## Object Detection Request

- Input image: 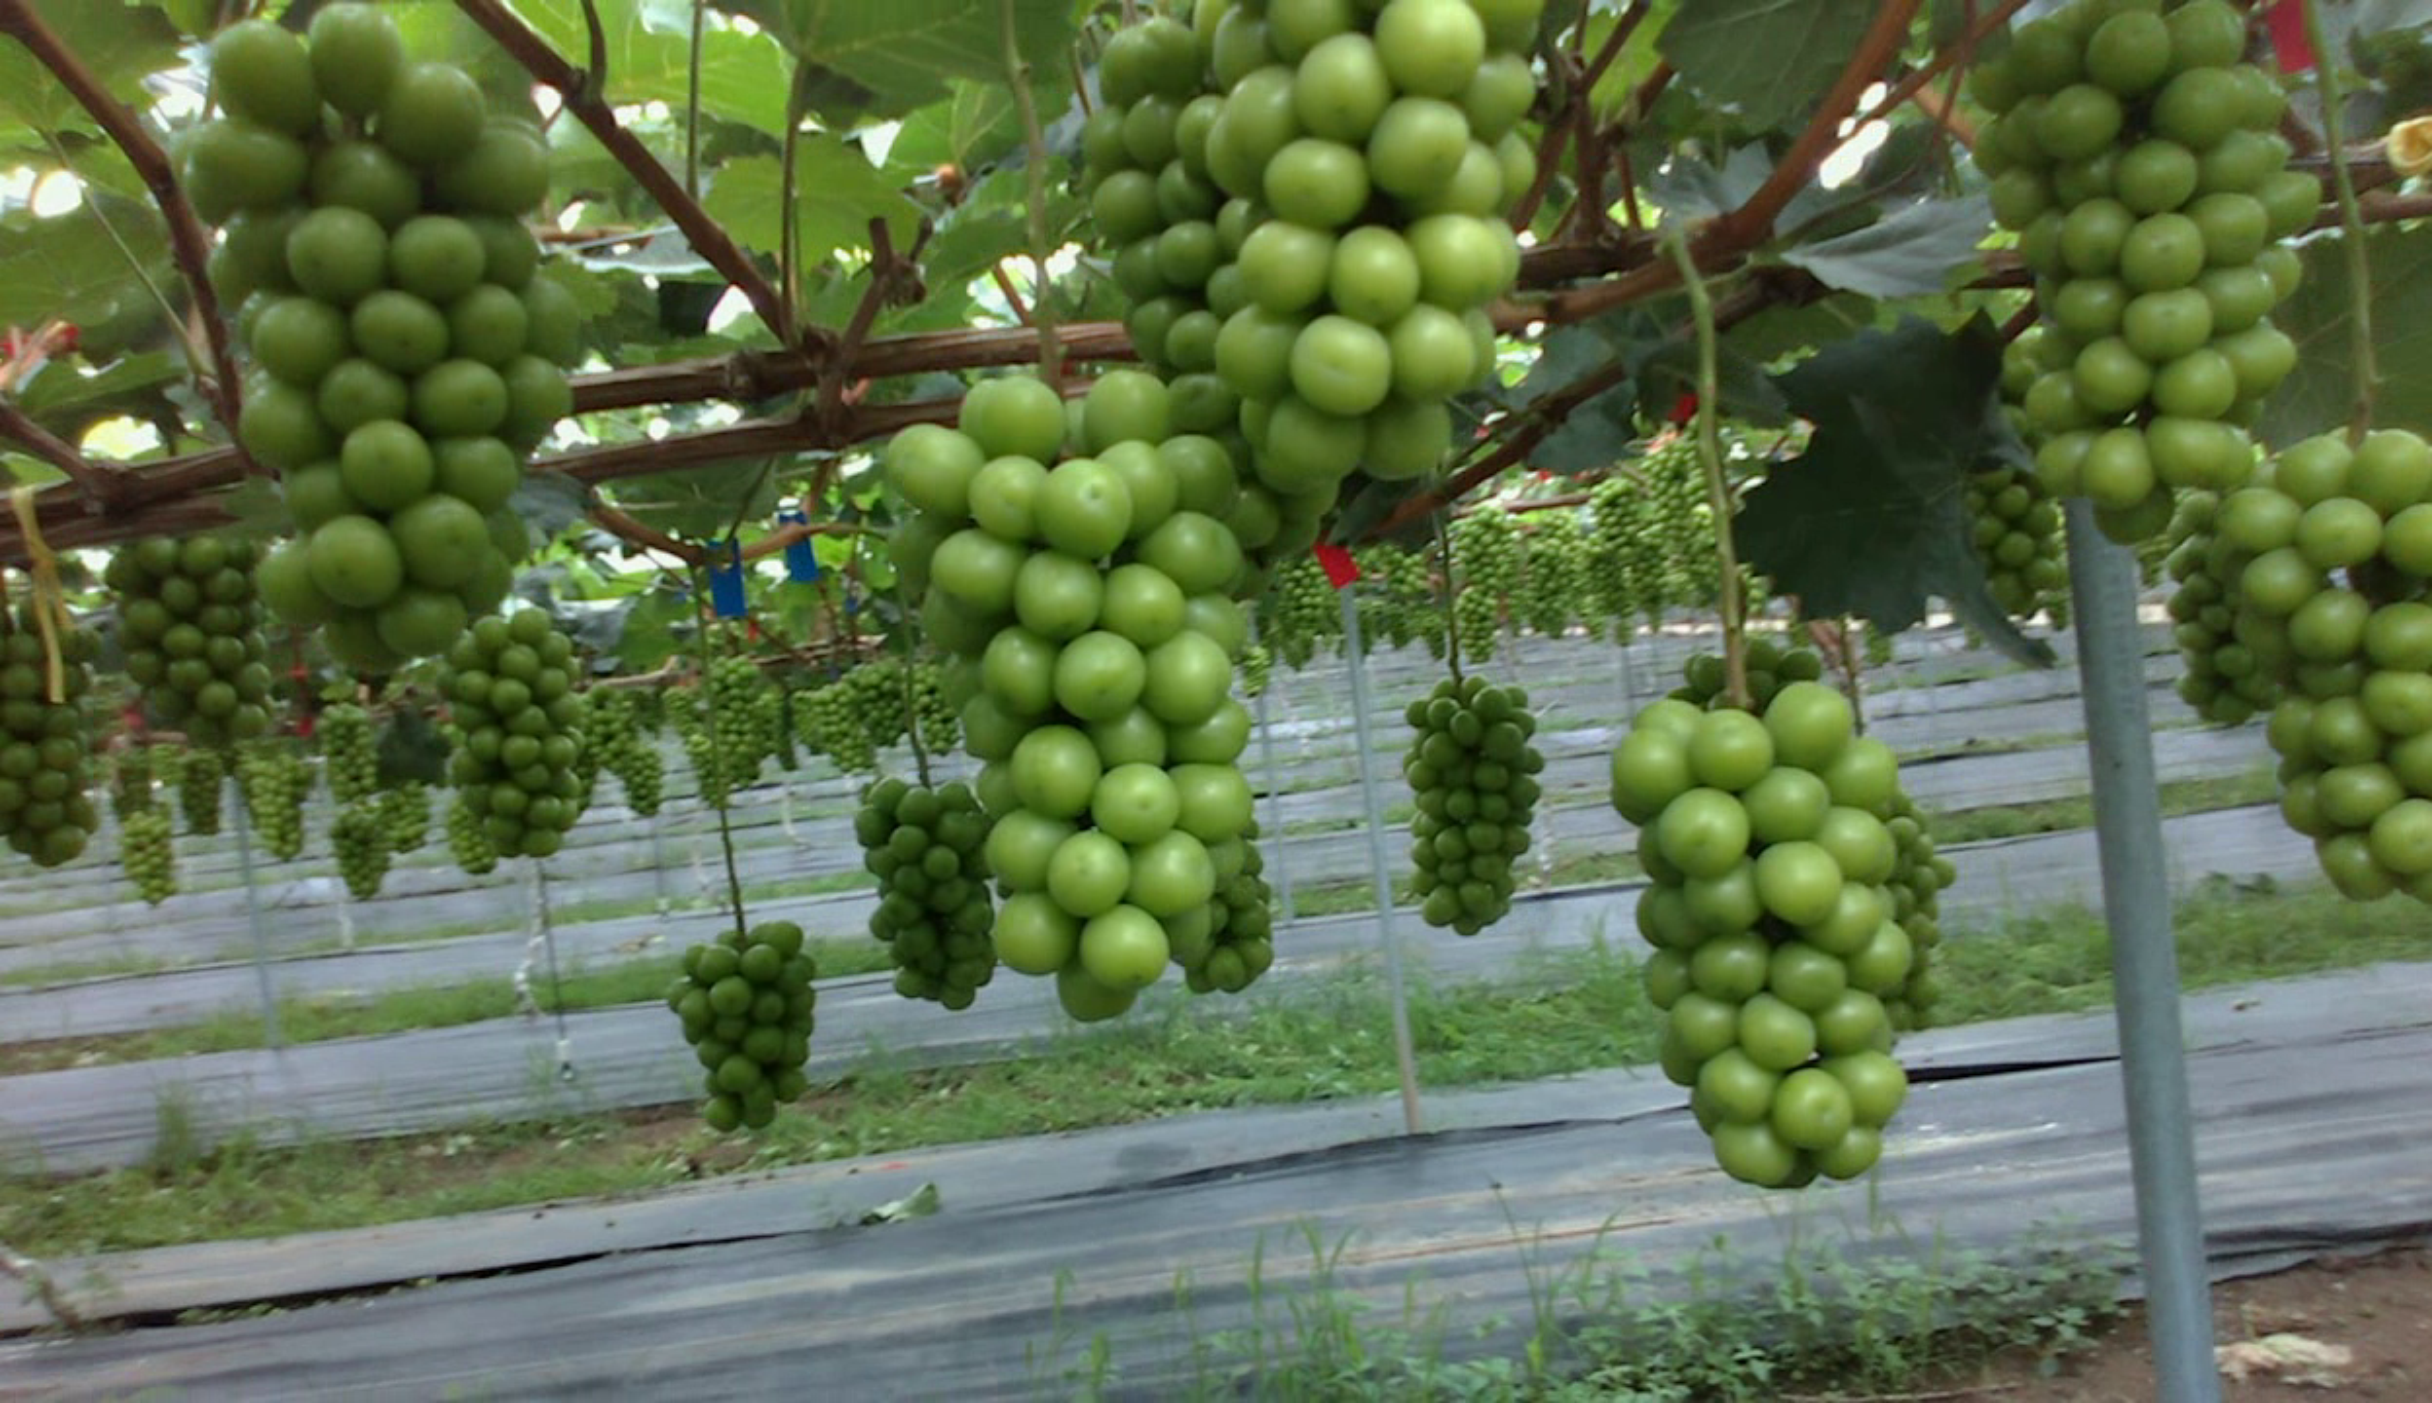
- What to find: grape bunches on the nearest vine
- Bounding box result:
[1195,0,1543,501]
[1076,14,1335,602]
[1608,678,1918,1191]
[887,370,1255,1027]
[1968,0,2323,542]
[183,2,581,680]
[2220,429,2430,902]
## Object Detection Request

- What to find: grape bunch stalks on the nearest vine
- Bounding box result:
[2301,2,2379,440]
[1668,230,1752,707]
[998,4,1060,390]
